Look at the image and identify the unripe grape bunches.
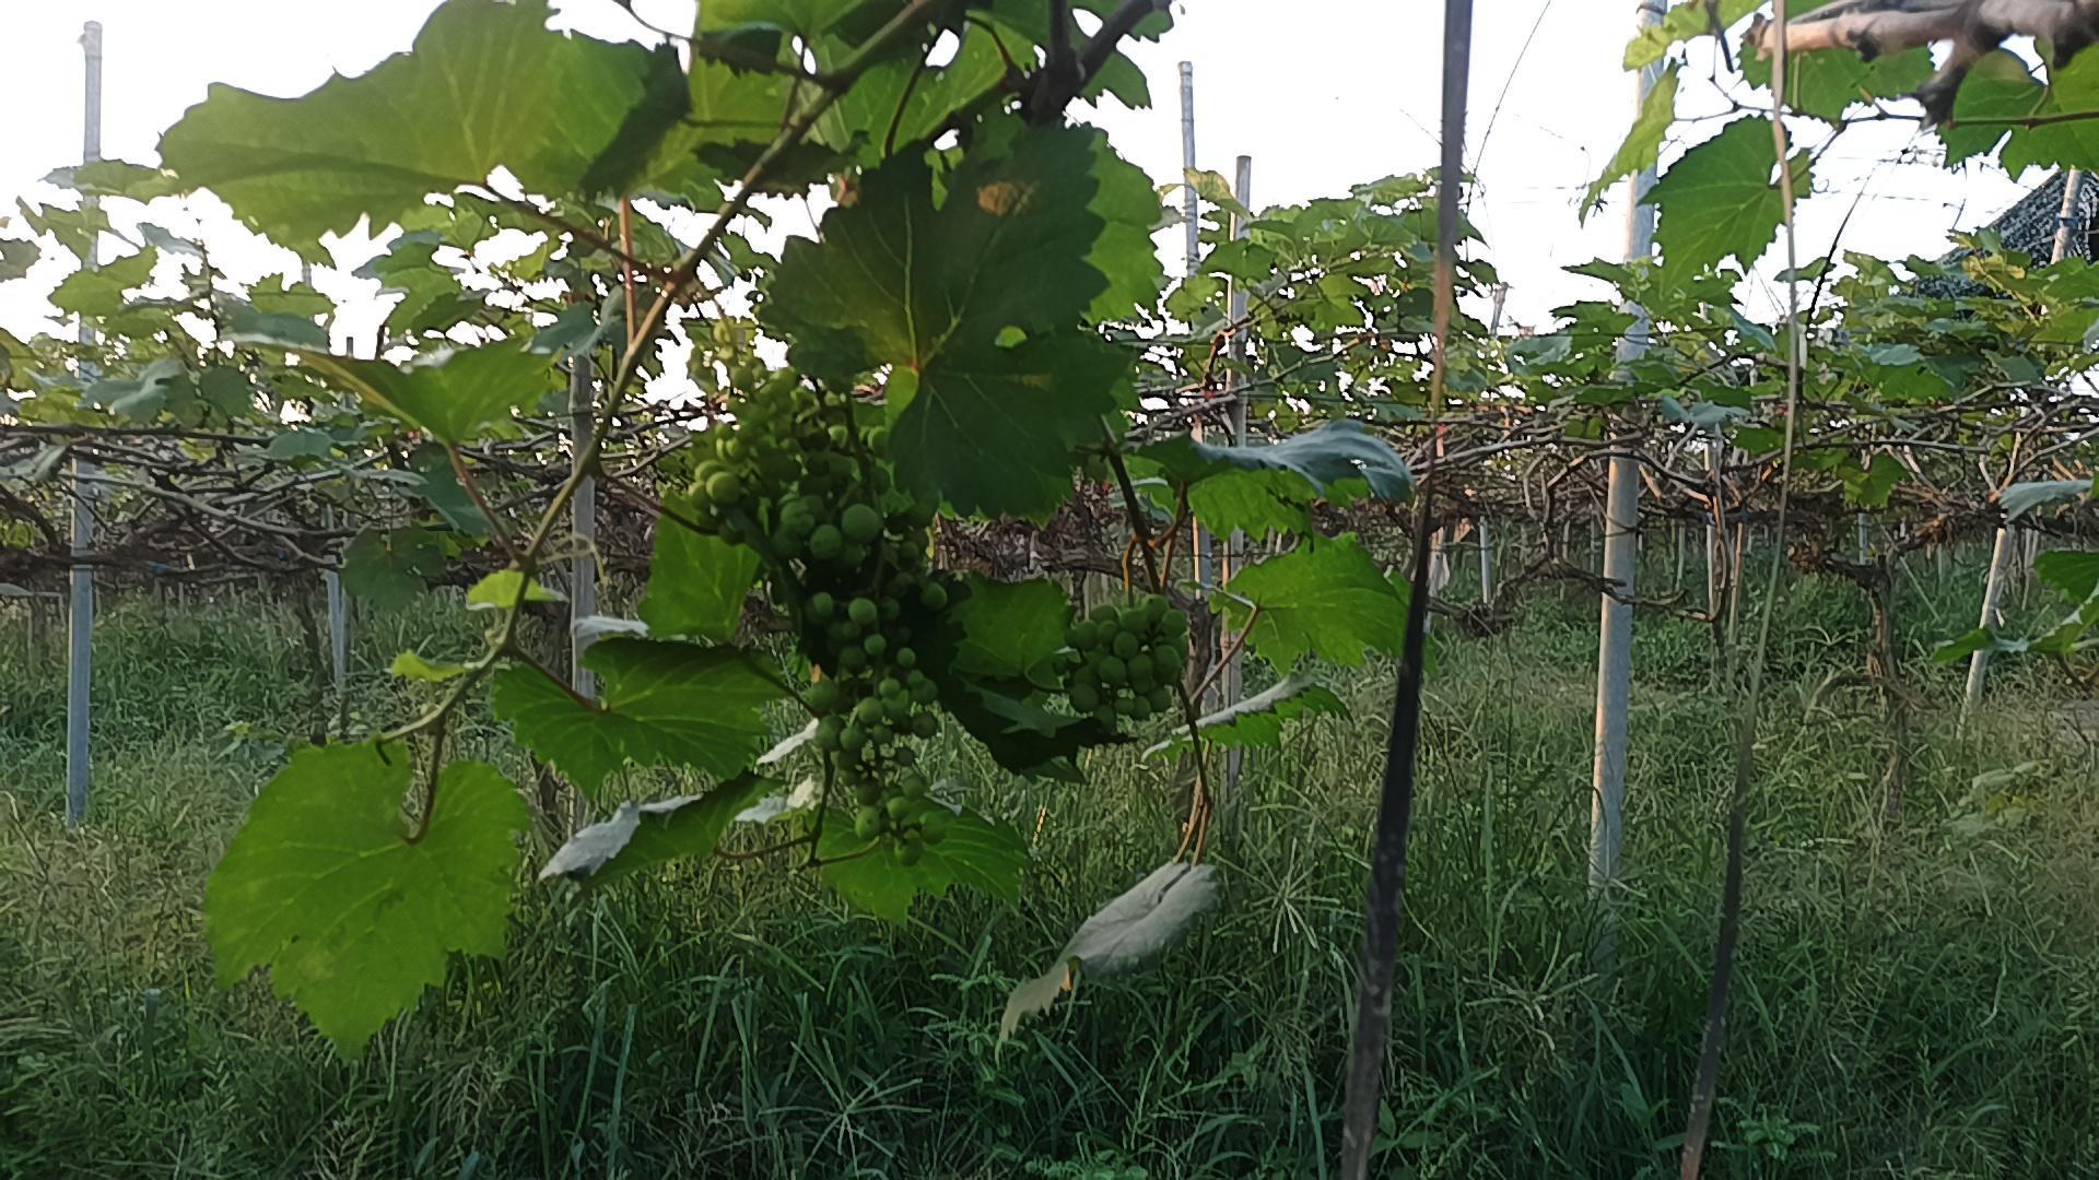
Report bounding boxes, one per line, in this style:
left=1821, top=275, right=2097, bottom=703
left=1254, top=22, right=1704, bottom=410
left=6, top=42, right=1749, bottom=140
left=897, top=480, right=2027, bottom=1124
left=1062, top=597, right=1185, bottom=732
left=685, top=357, right=959, bottom=868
